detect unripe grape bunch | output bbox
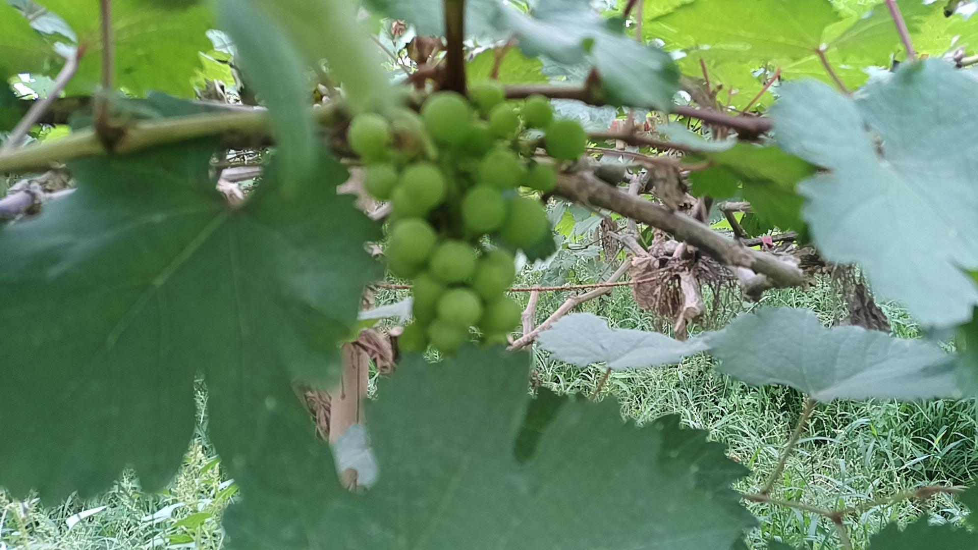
[348,84,586,354]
